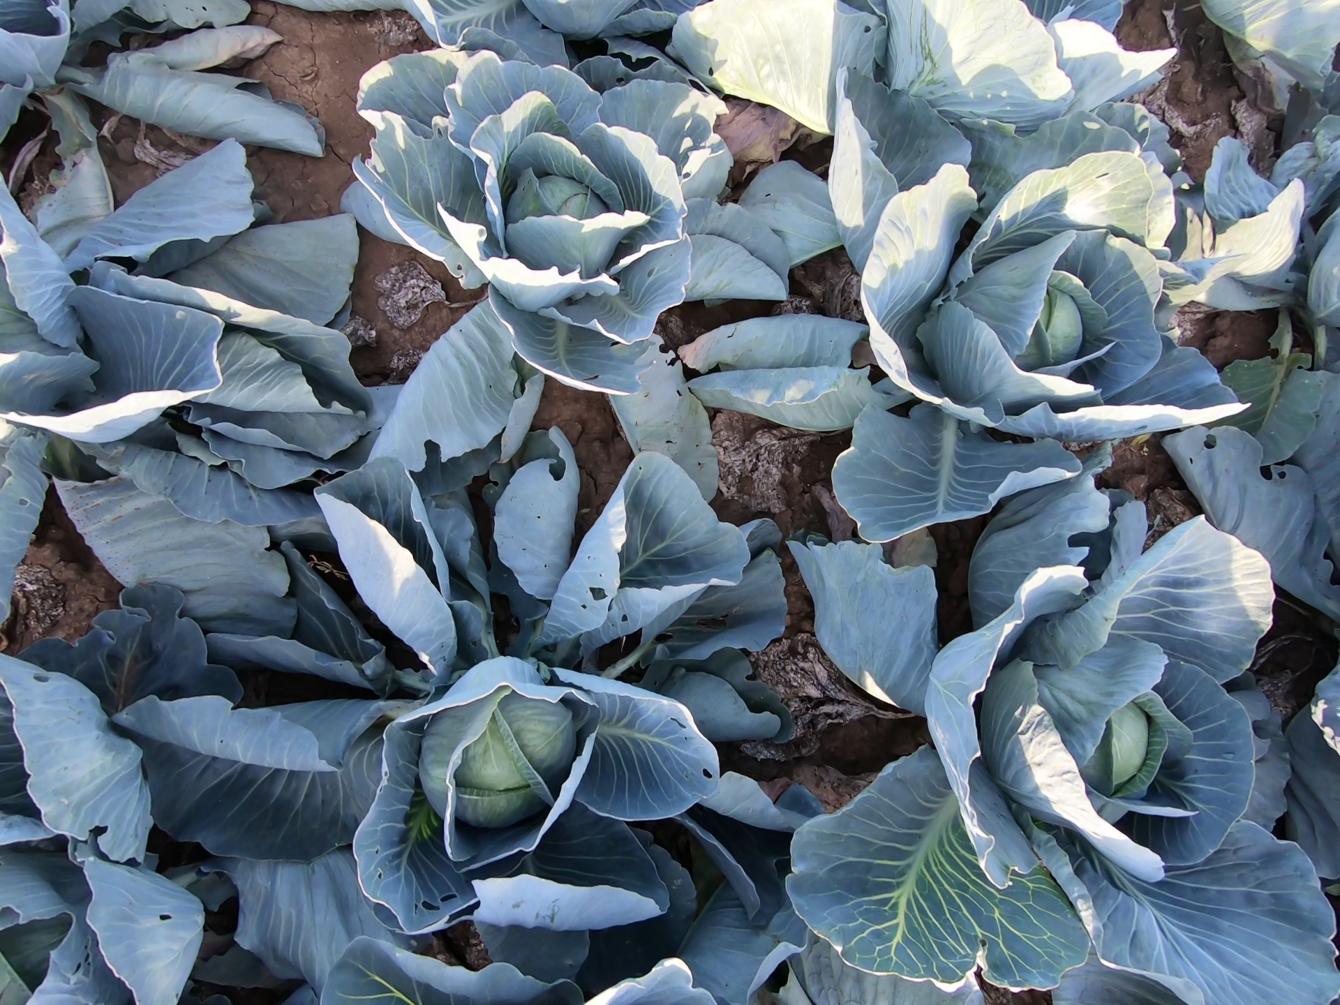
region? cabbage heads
[1033,669,1155,820]
[2,884,95,1002]
[428,685,572,827]
[968,271,1085,382]
[507,175,619,275]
